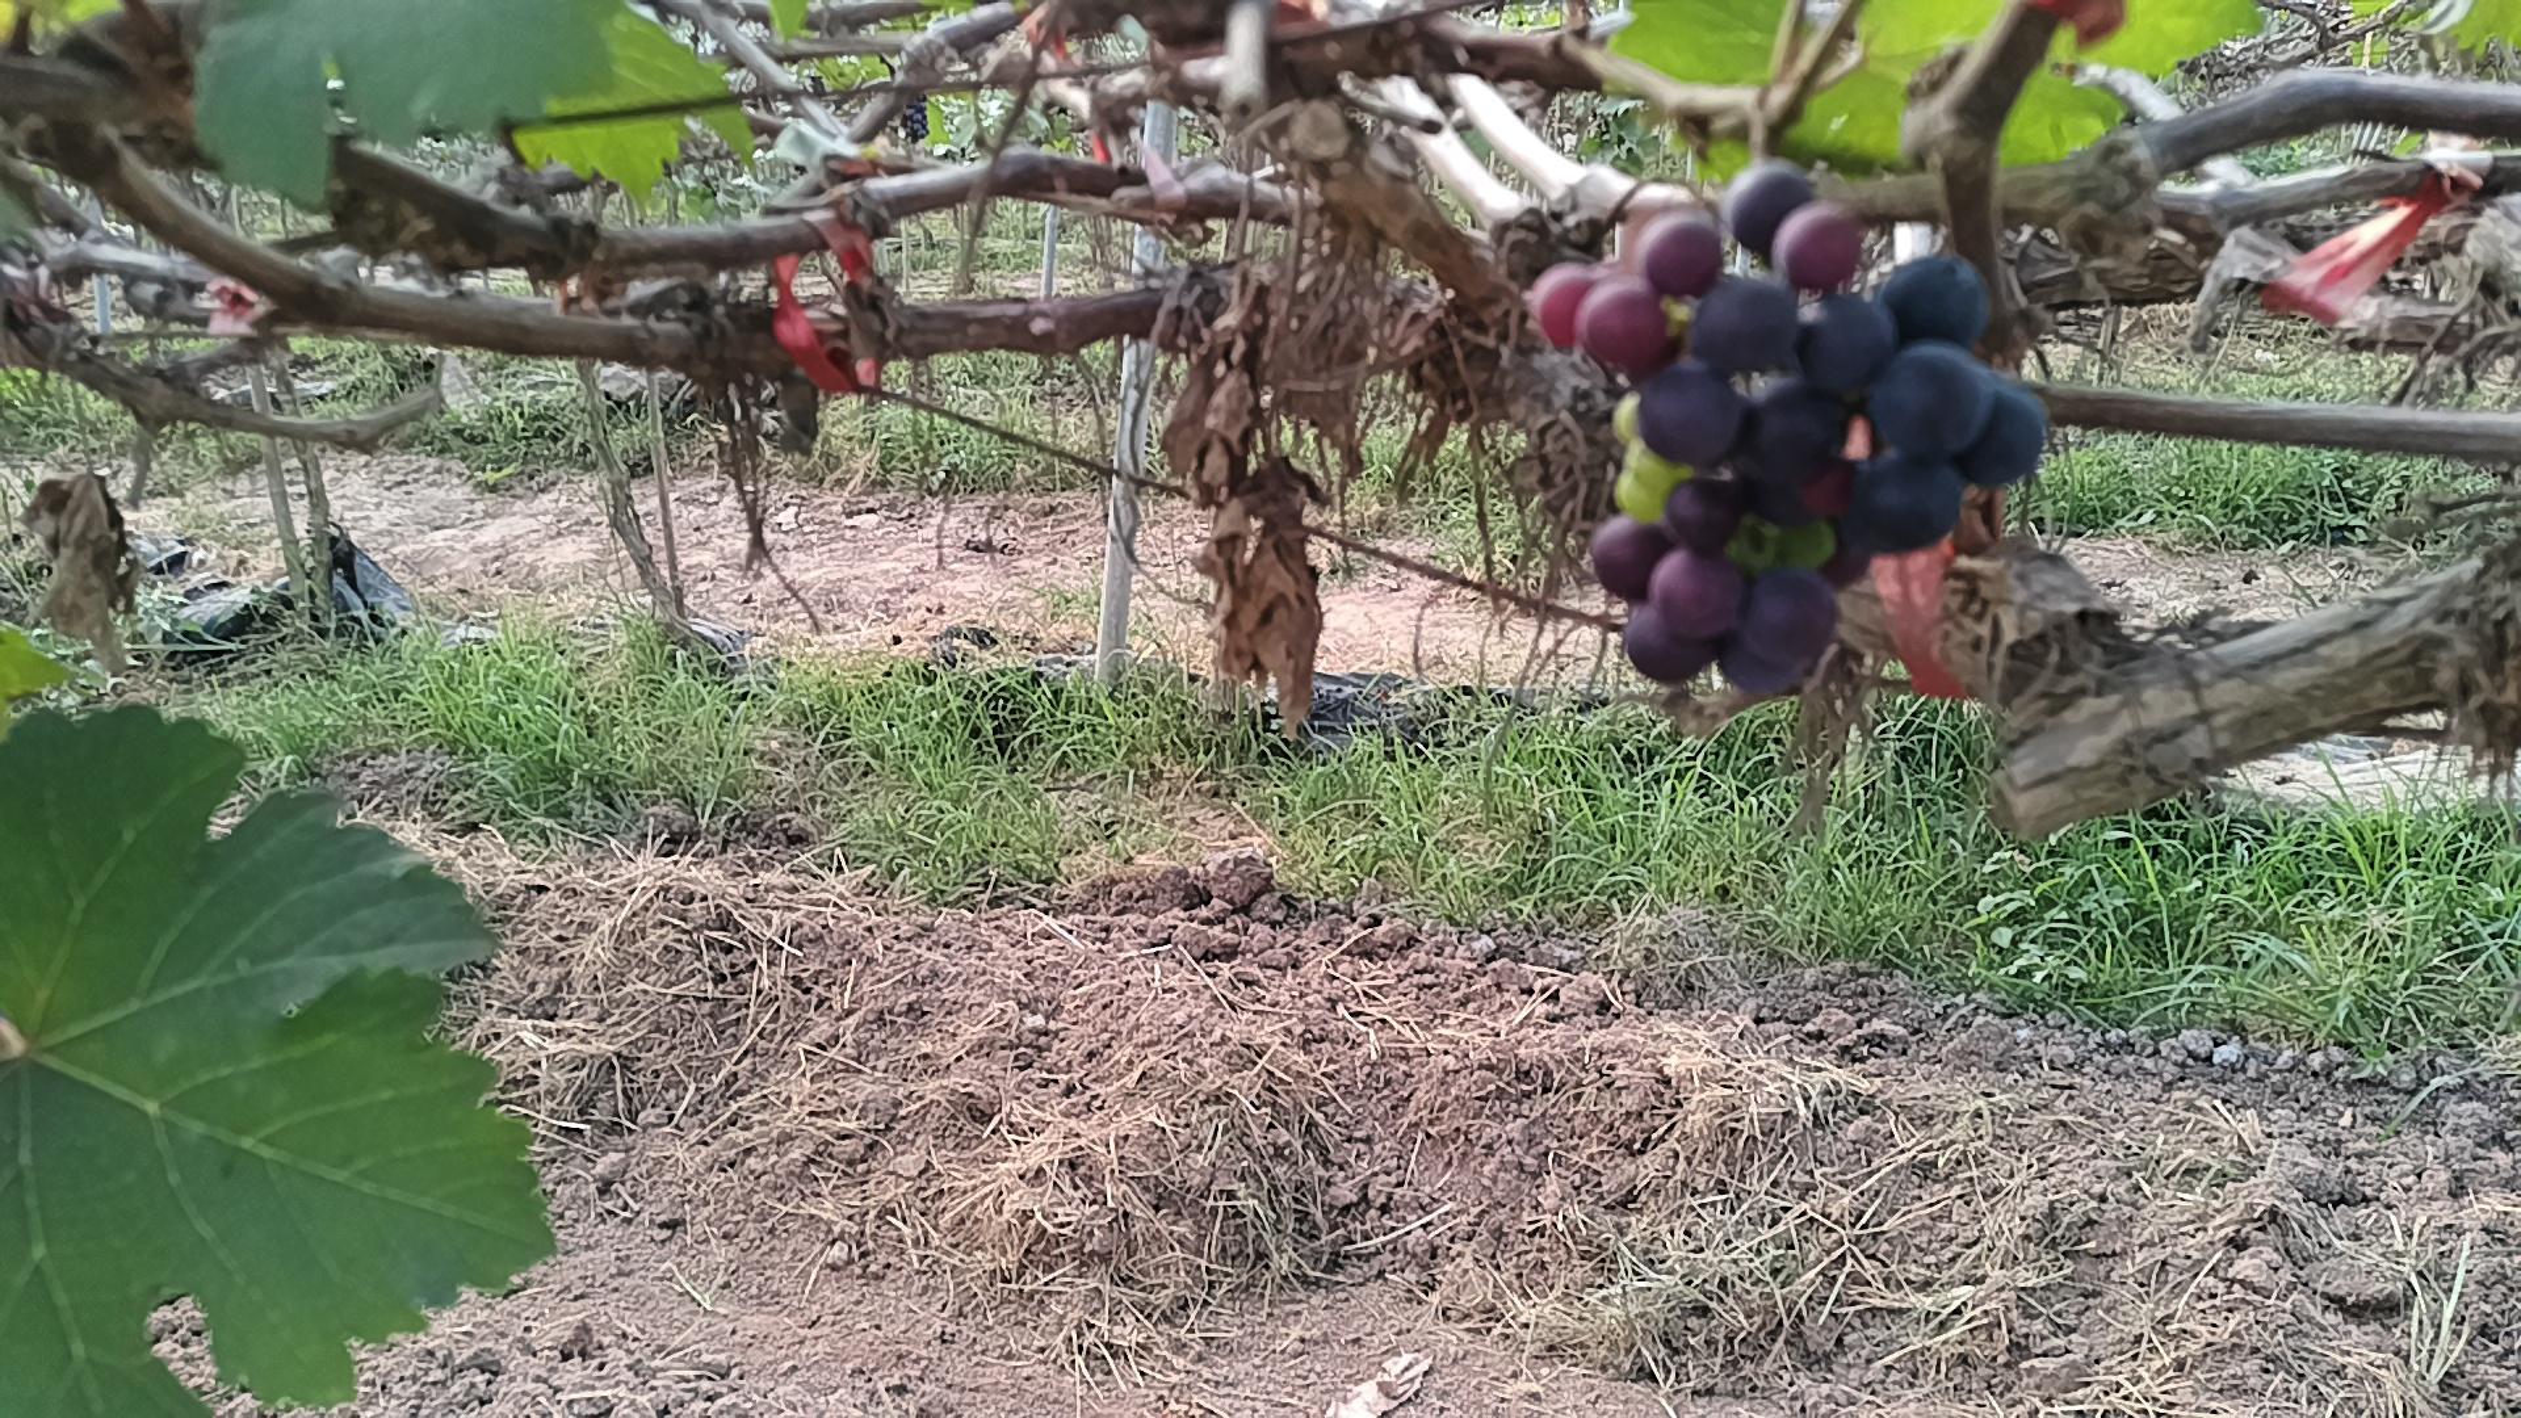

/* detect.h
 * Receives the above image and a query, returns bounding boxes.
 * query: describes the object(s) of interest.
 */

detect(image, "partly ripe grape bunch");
[1530,167,2046,698]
